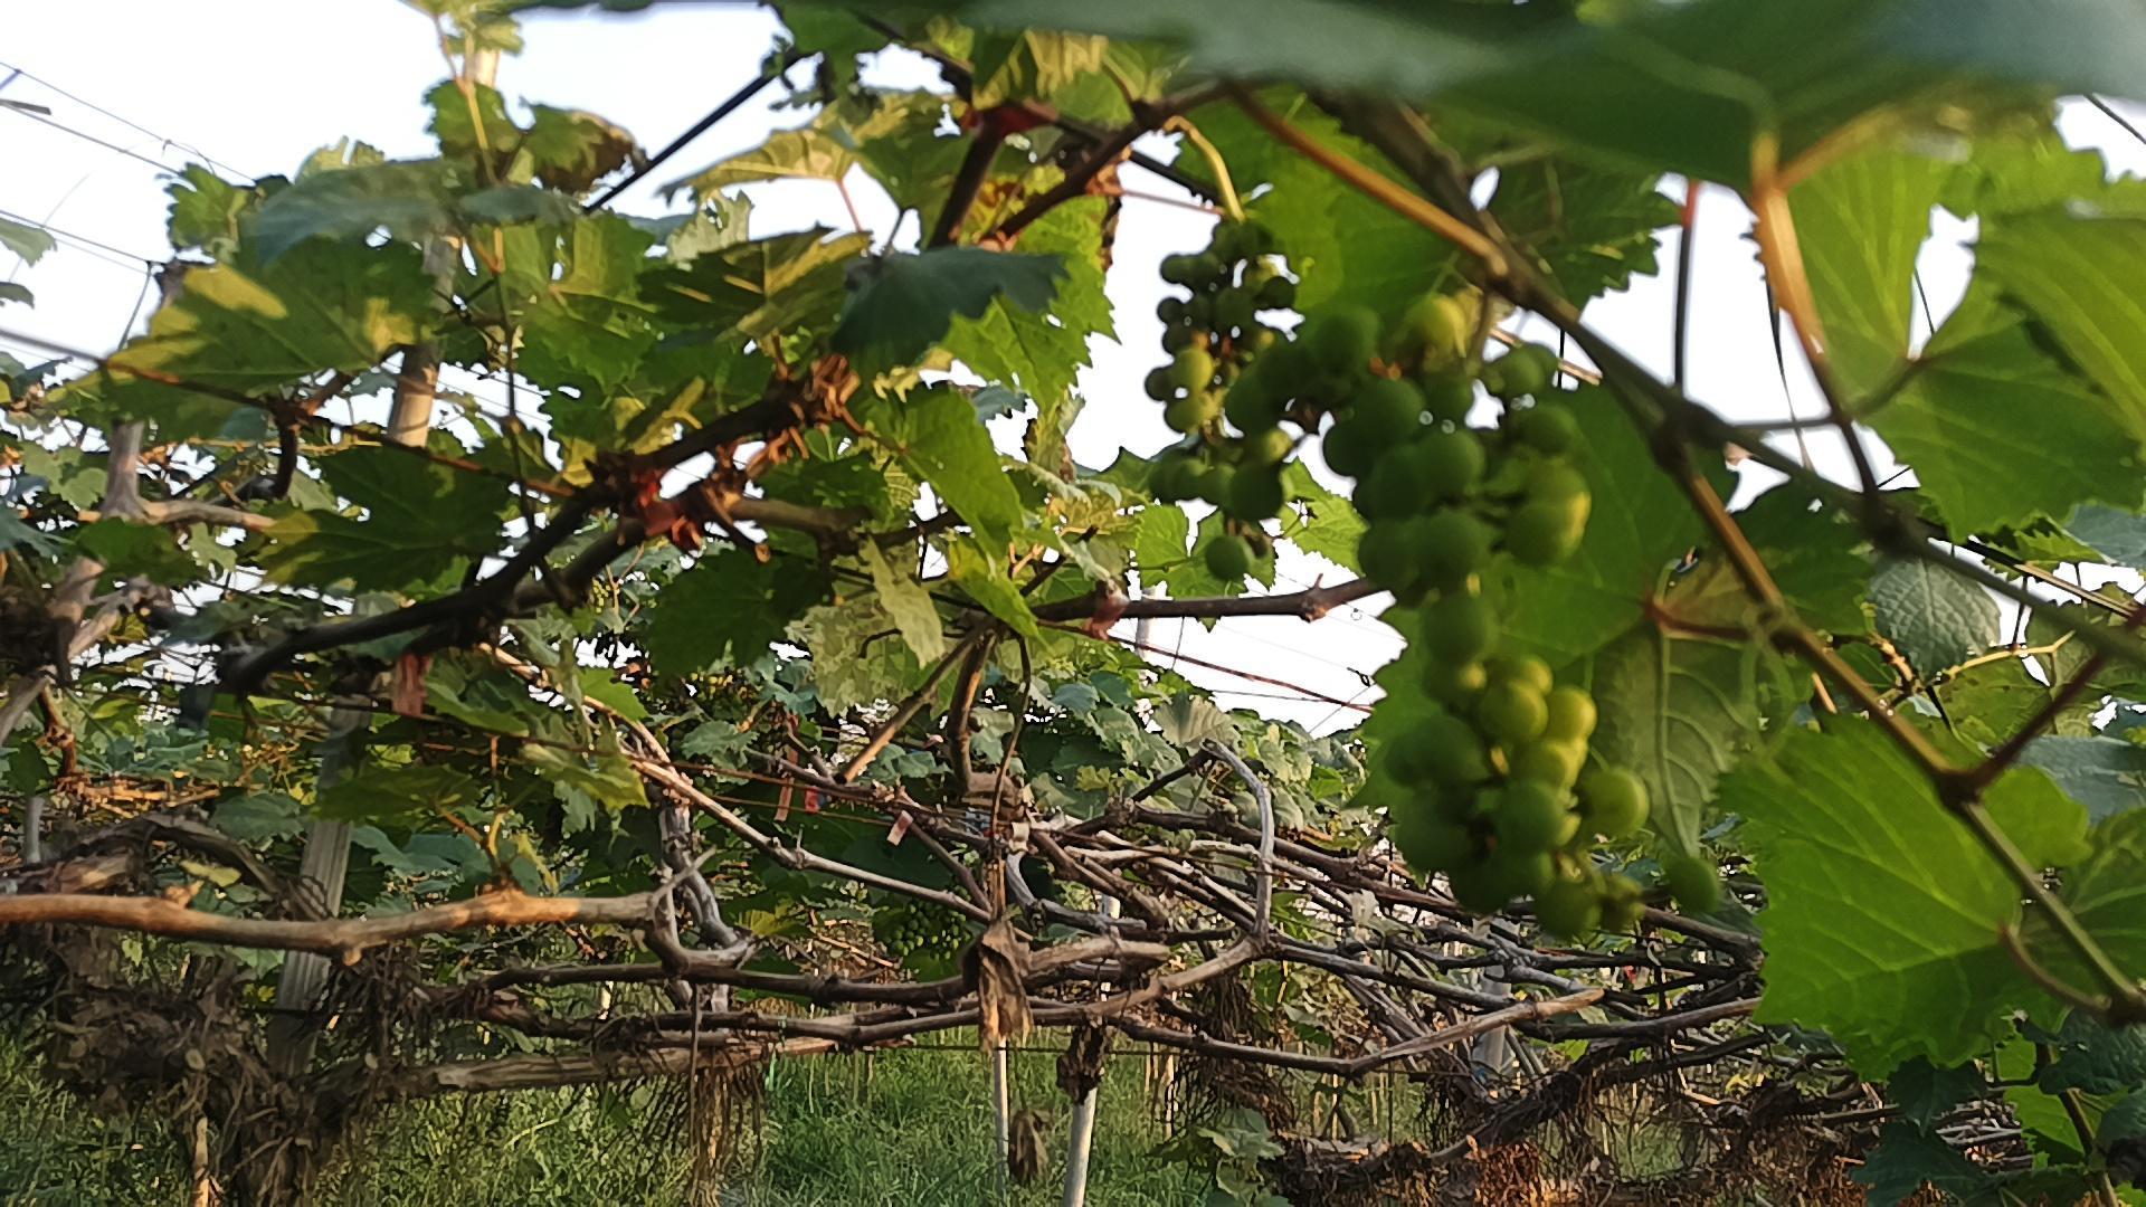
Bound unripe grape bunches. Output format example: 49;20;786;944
872;893;971;958
1224;287;1725;935
1145;220;1295;580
